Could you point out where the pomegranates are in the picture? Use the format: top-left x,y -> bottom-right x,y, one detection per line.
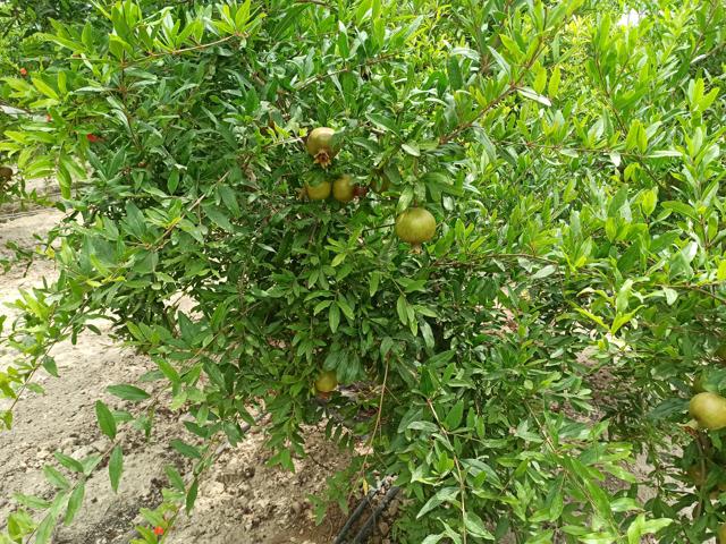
331,176 -> 370,203
675,390 -> 726,439
306,127 -> 340,170
0,165 -> 12,181
315,369 -> 338,393
395,207 -> 437,254
294,180 -> 331,204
